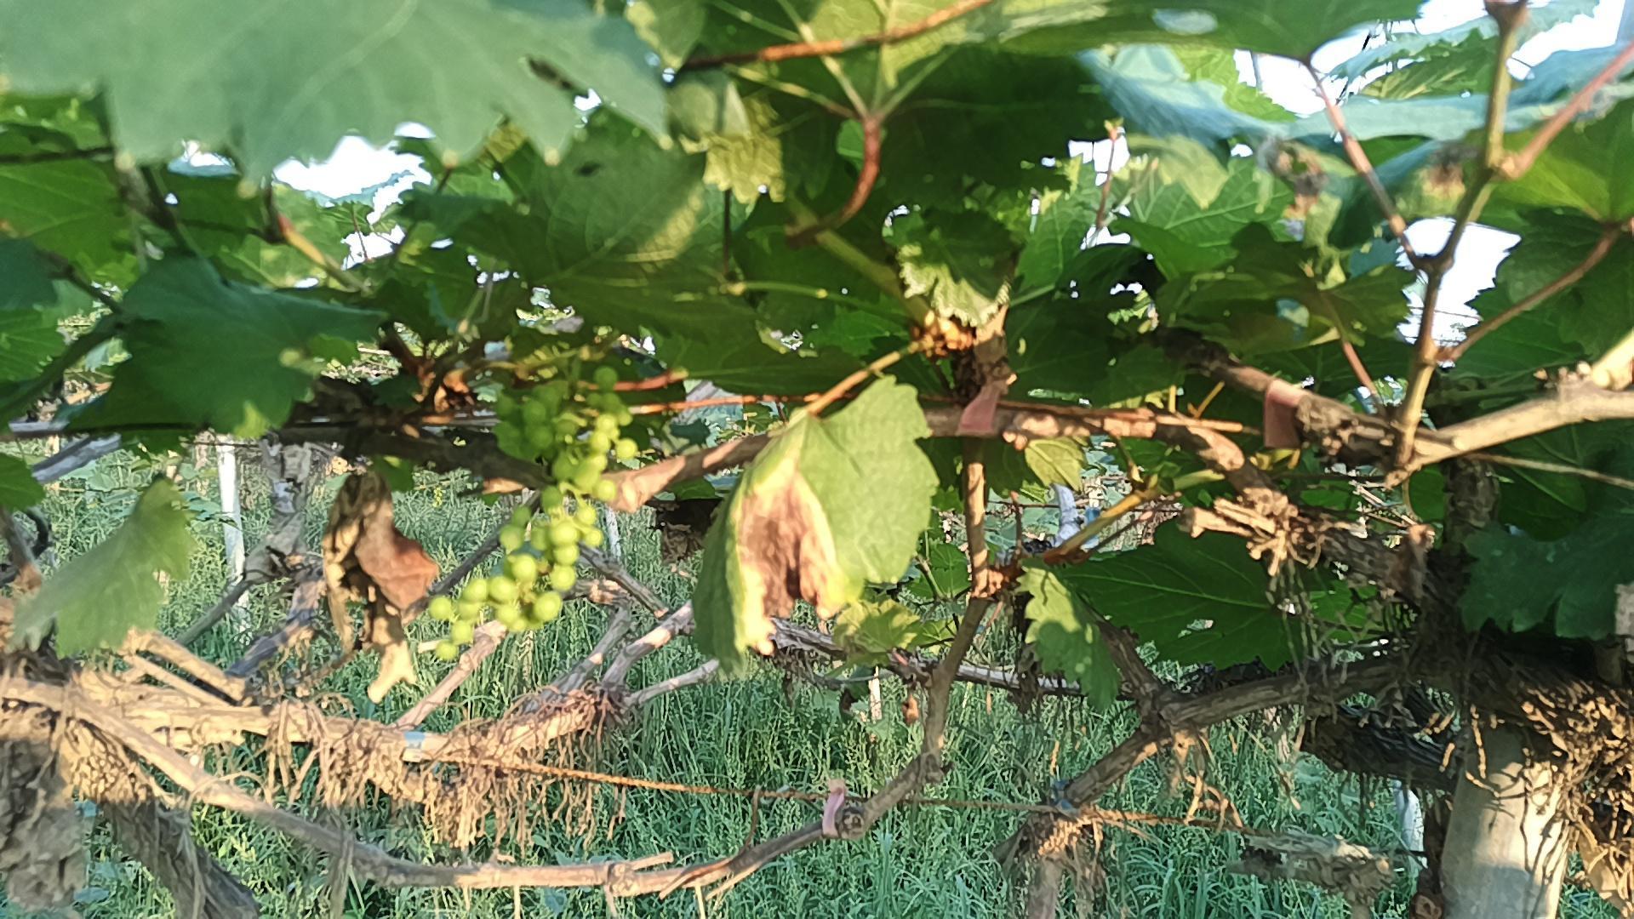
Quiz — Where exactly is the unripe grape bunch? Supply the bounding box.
[428,367,639,659]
